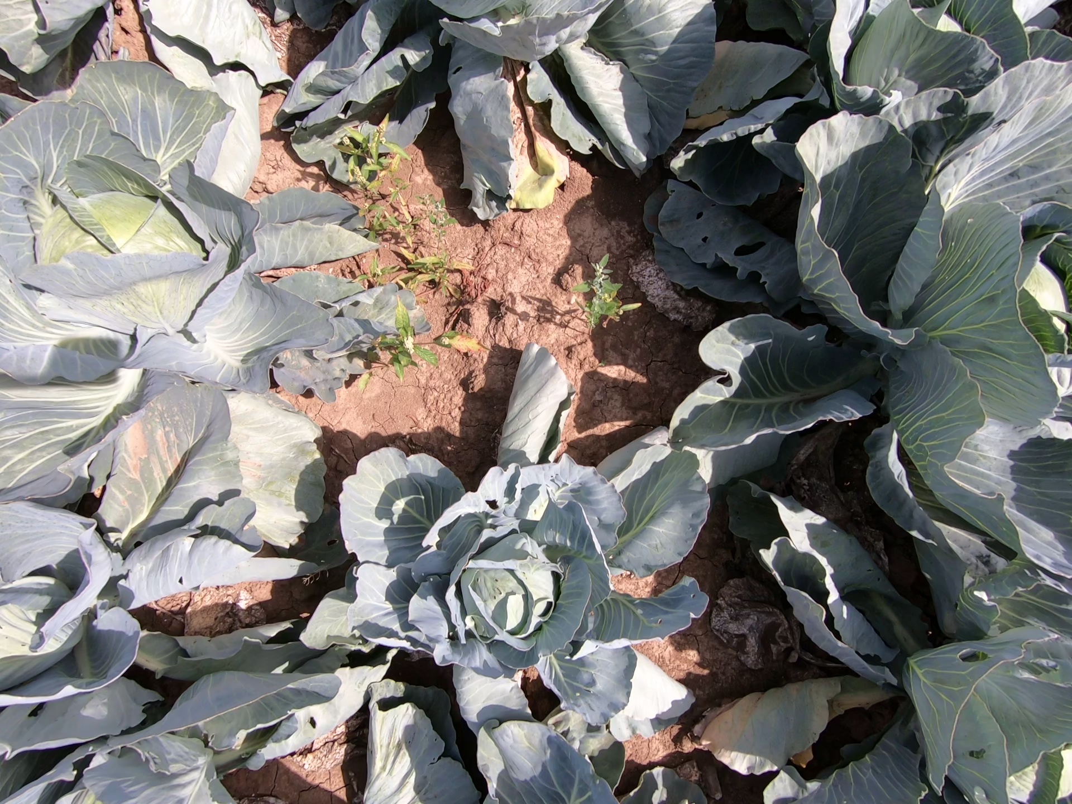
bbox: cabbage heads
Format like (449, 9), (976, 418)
(70, 746), (214, 802)
(845, 3), (970, 104)
(2, 573), (85, 694)
(32, 191), (212, 330)
(939, 660), (1070, 801)
(462, 544), (556, 641)
(974, 261), (1068, 353)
